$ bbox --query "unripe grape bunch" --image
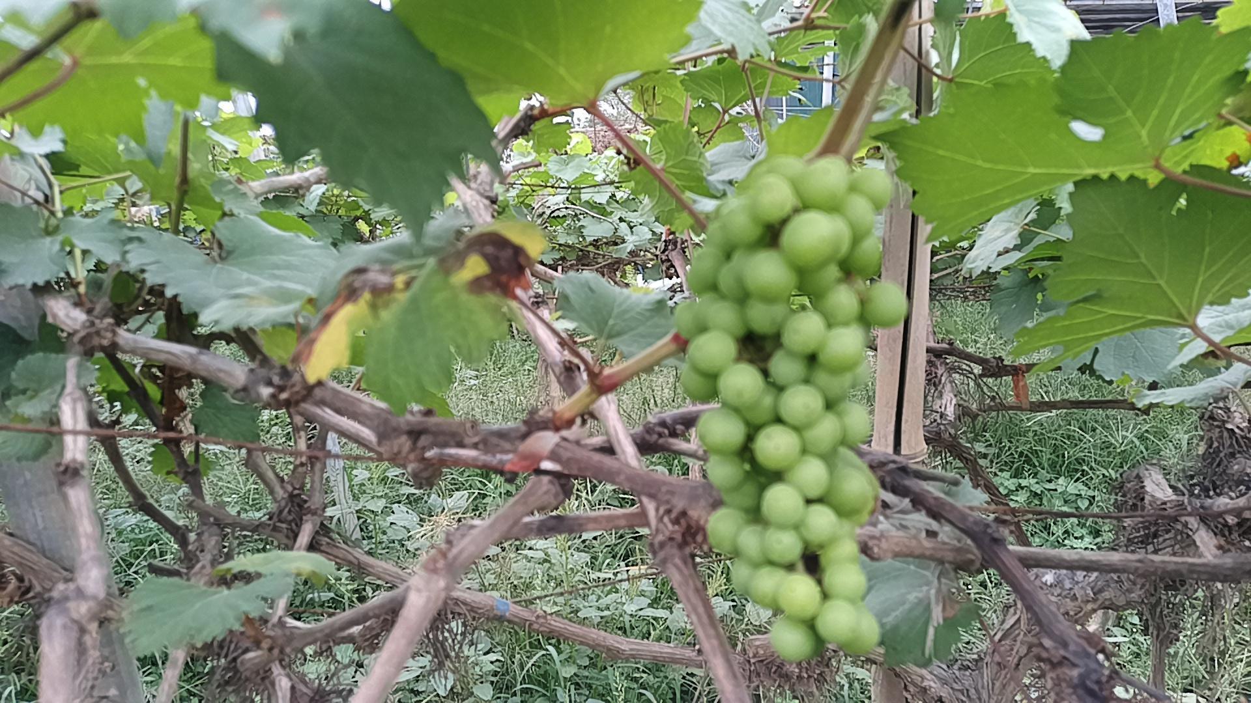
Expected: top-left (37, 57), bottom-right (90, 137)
top-left (676, 156), bottom-right (906, 661)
